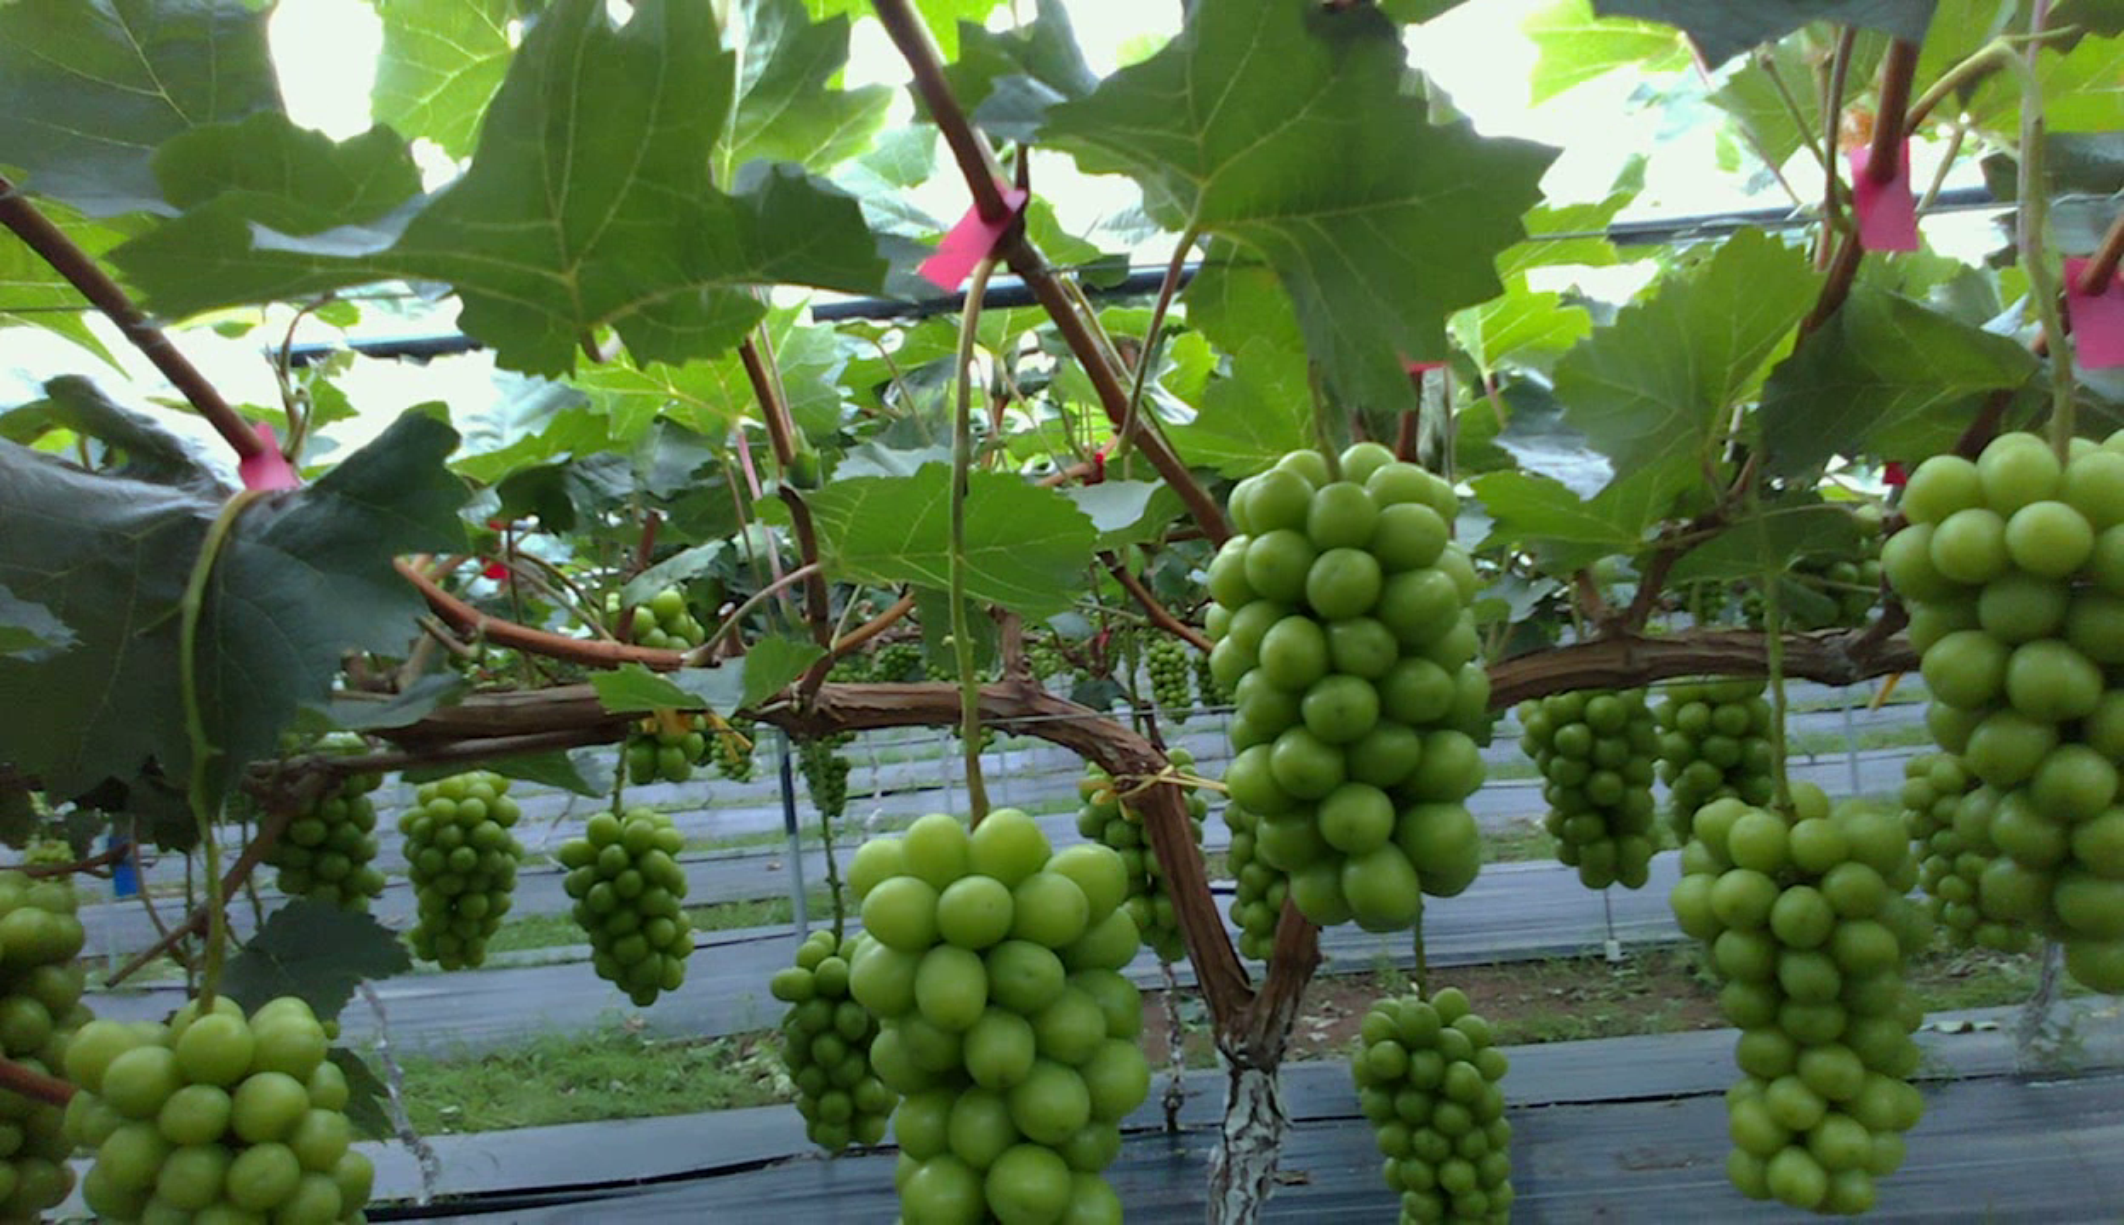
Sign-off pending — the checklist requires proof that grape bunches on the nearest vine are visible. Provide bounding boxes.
[1212,444,1486,931]
[1882,432,2122,992]
[1675,779,1932,1213]
[63,995,373,1223]
[849,808,1147,1223]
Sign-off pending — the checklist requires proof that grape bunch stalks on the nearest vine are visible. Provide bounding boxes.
[180,485,269,1017]
[948,259,997,830]
[1898,44,2076,473]
[1743,475,1801,827]
[1307,352,1341,481]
